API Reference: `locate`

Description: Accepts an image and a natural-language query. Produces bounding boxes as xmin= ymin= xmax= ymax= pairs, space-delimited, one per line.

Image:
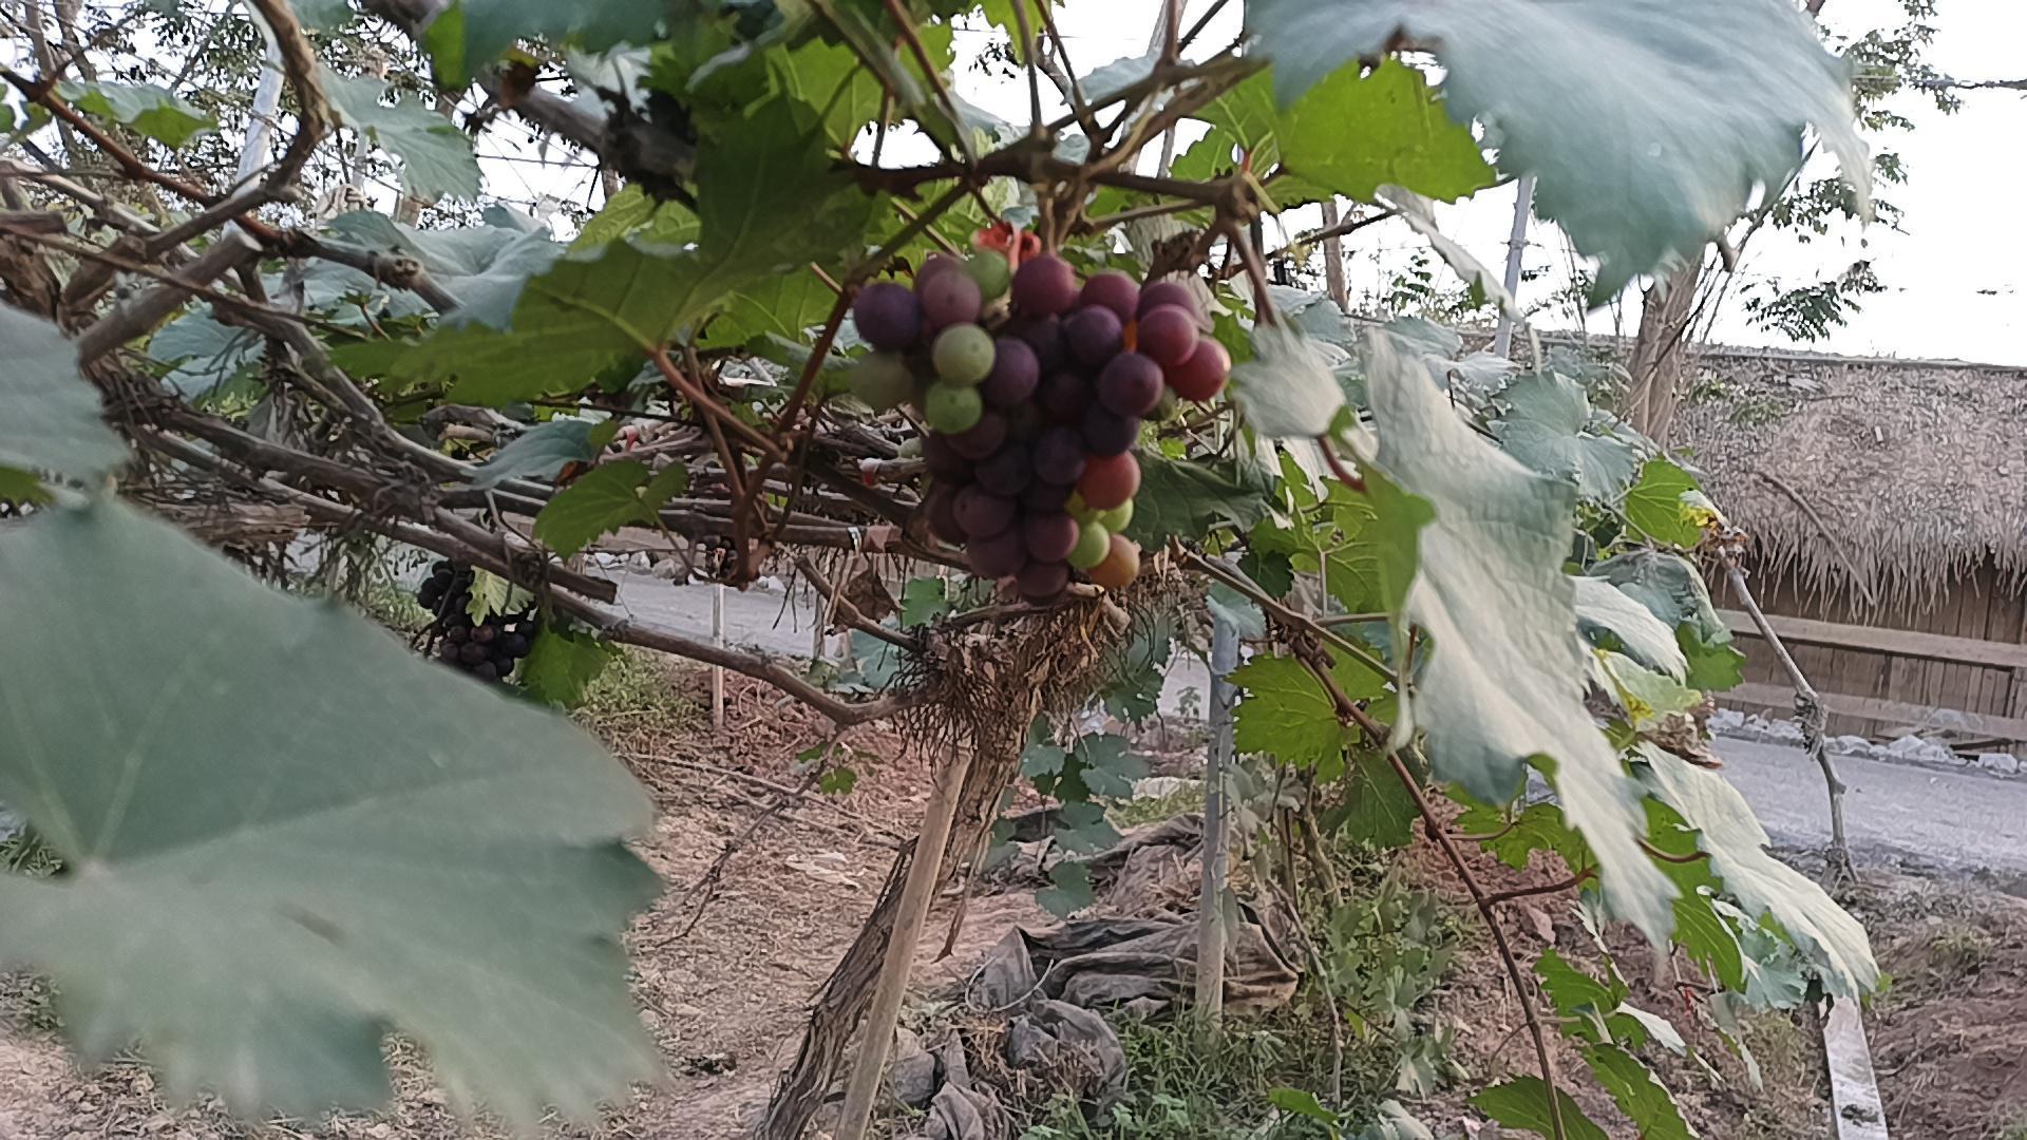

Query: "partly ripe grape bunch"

xmin=851 ymin=224 xmax=1230 ymax=602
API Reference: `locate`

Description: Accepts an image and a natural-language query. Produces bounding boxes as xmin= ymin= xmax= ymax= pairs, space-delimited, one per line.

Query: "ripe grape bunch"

xmin=417 ymin=560 xmax=541 ymax=683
